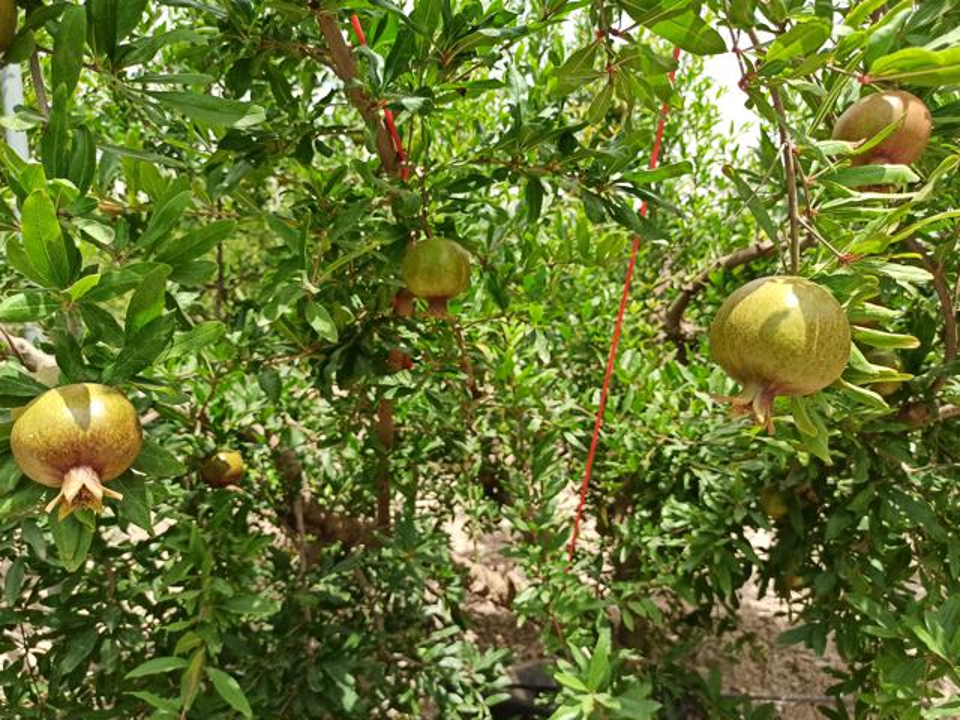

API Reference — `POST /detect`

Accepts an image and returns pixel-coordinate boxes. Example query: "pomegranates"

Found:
[760,490,789,516]
[708,274,850,435]
[9,381,144,522]
[829,88,931,166]
[201,451,244,486]
[402,238,469,319]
